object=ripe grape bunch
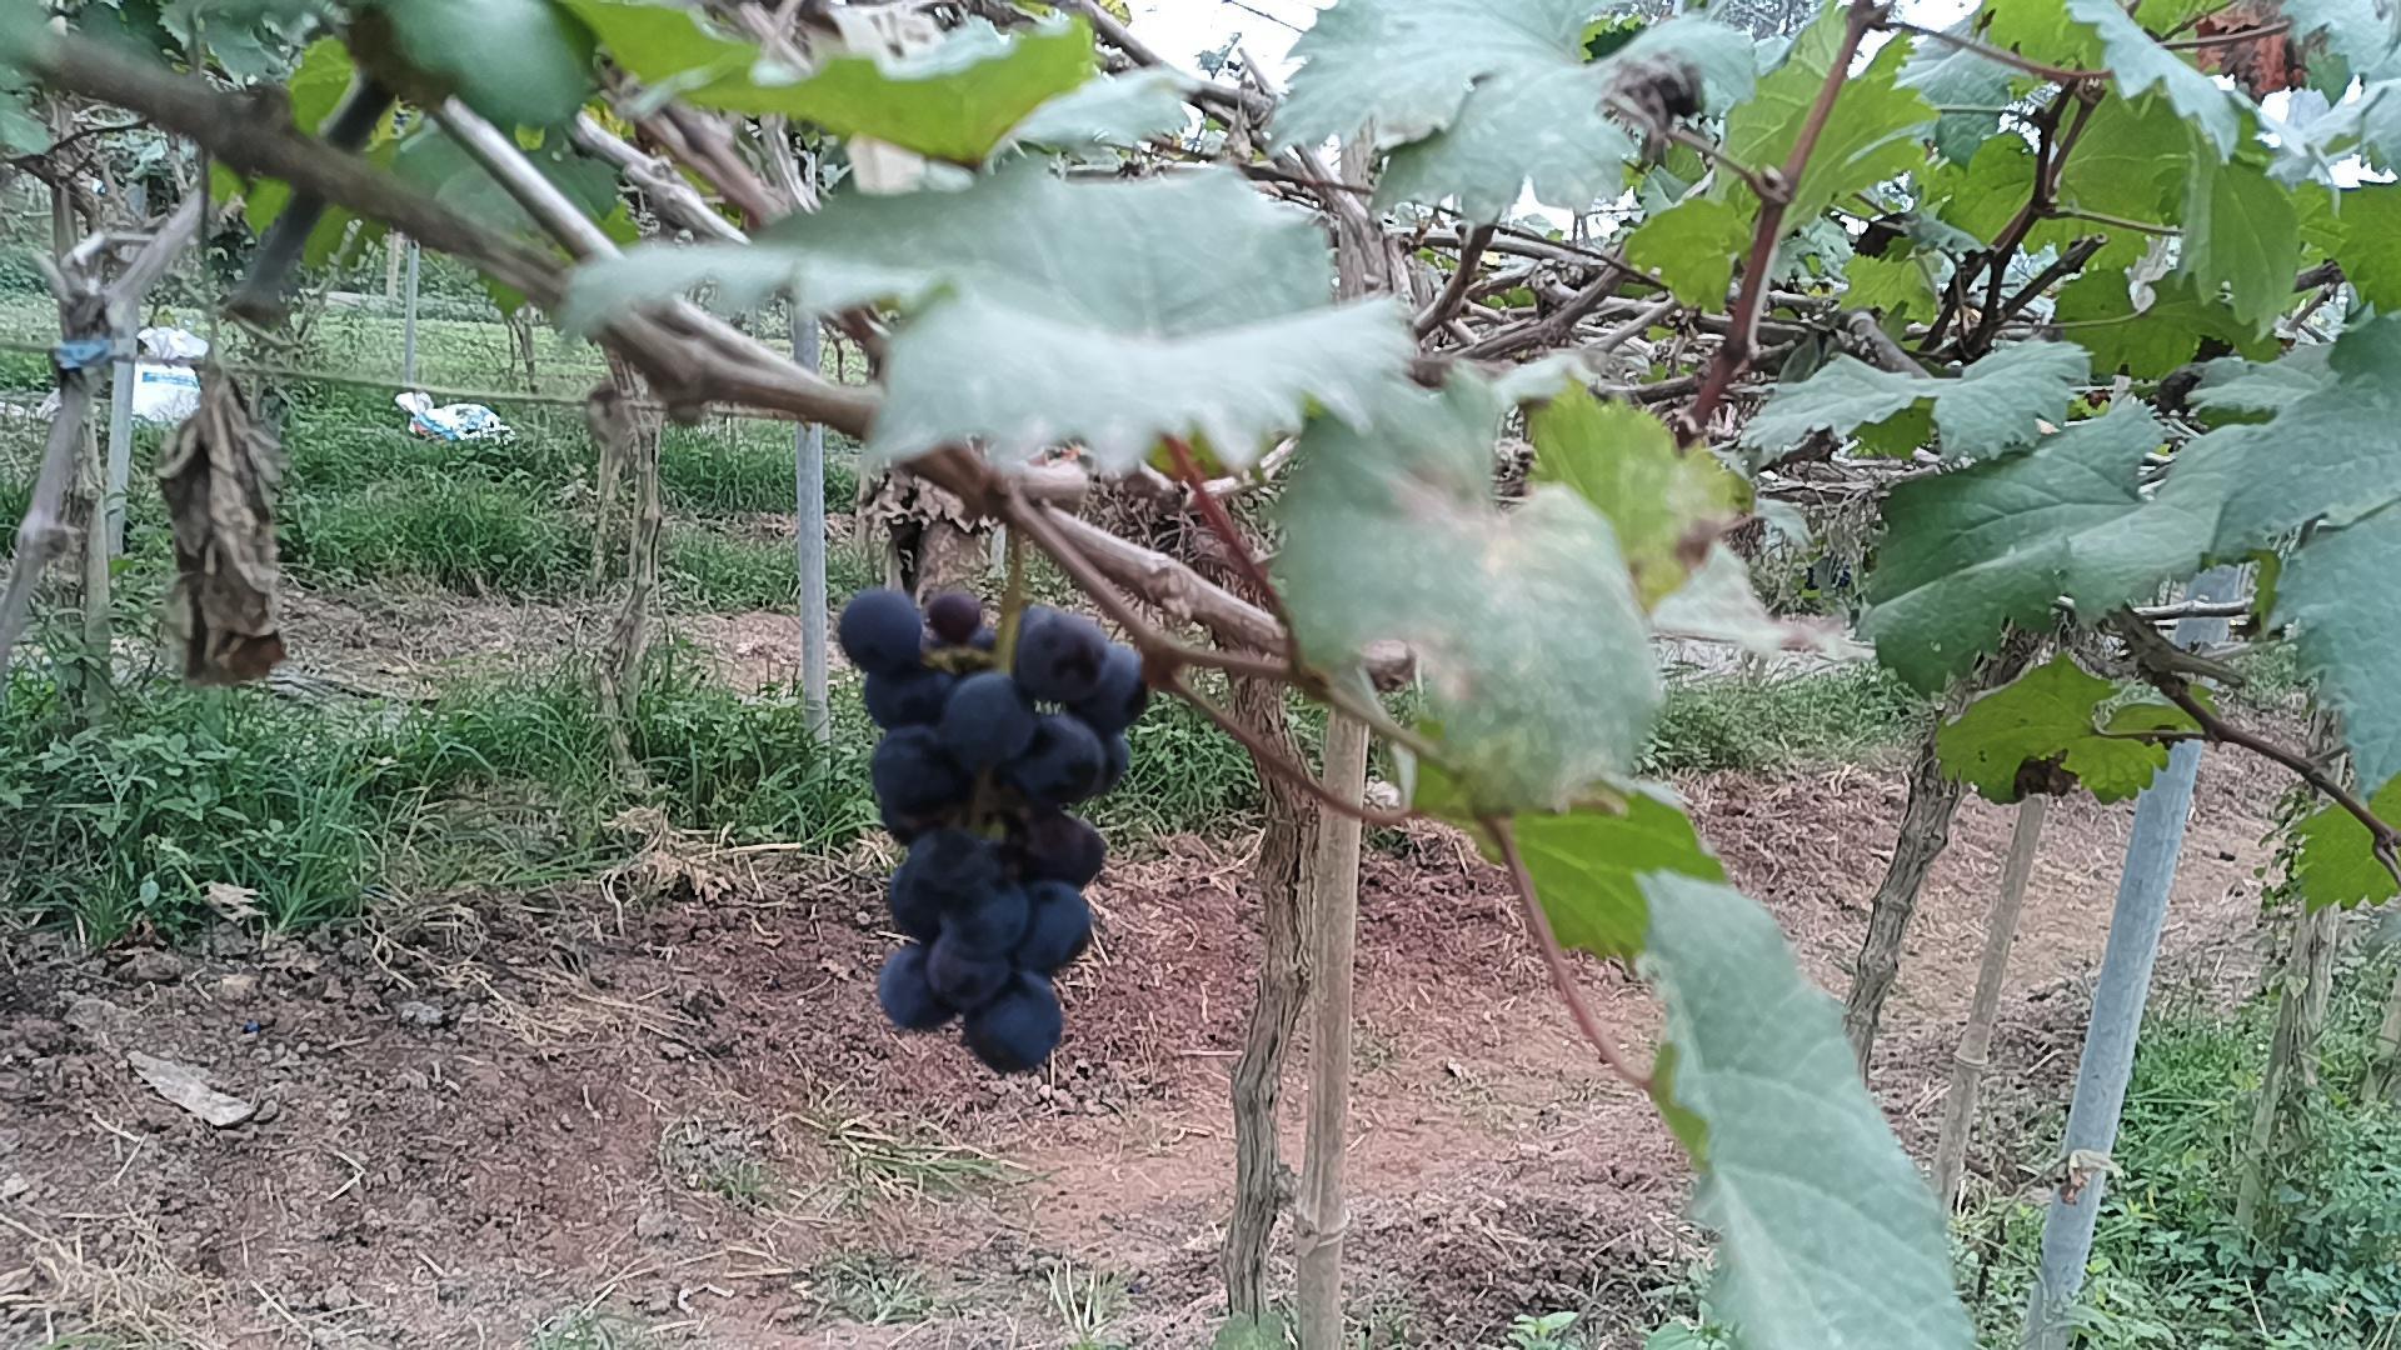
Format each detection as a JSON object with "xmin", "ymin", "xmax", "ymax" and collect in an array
[{"xmin": 839, "ymin": 590, "xmax": 1147, "ymax": 1071}]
